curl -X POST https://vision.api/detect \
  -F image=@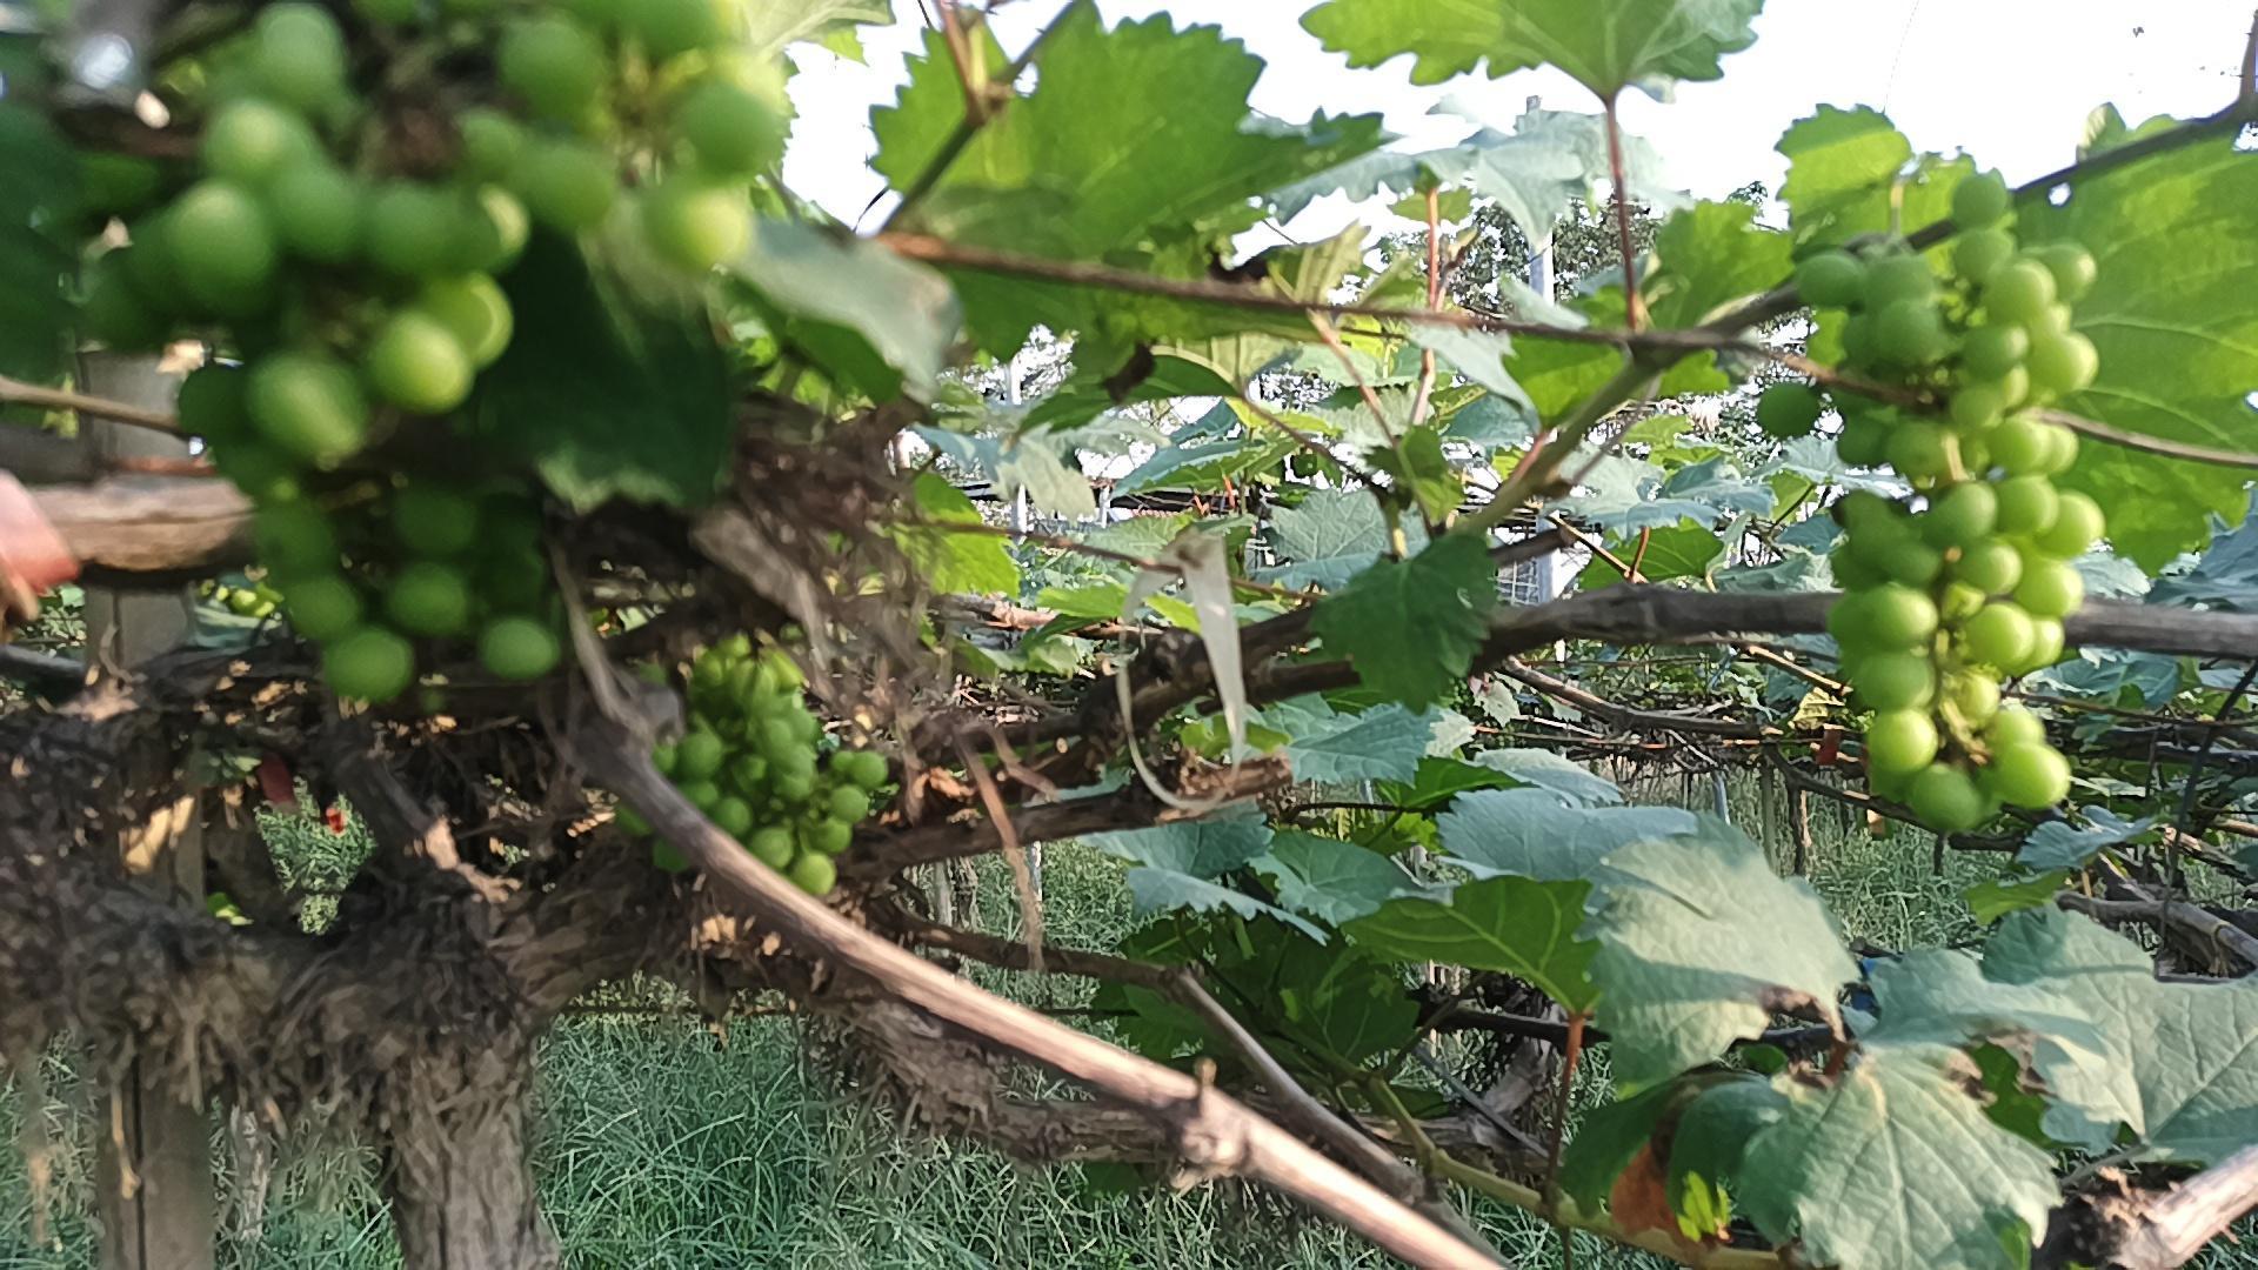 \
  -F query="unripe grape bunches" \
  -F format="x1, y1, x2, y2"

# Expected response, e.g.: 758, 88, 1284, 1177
608, 795, 694, 875
76, 0, 795, 710
1751, 172, 2109, 838
628, 628, 900, 902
